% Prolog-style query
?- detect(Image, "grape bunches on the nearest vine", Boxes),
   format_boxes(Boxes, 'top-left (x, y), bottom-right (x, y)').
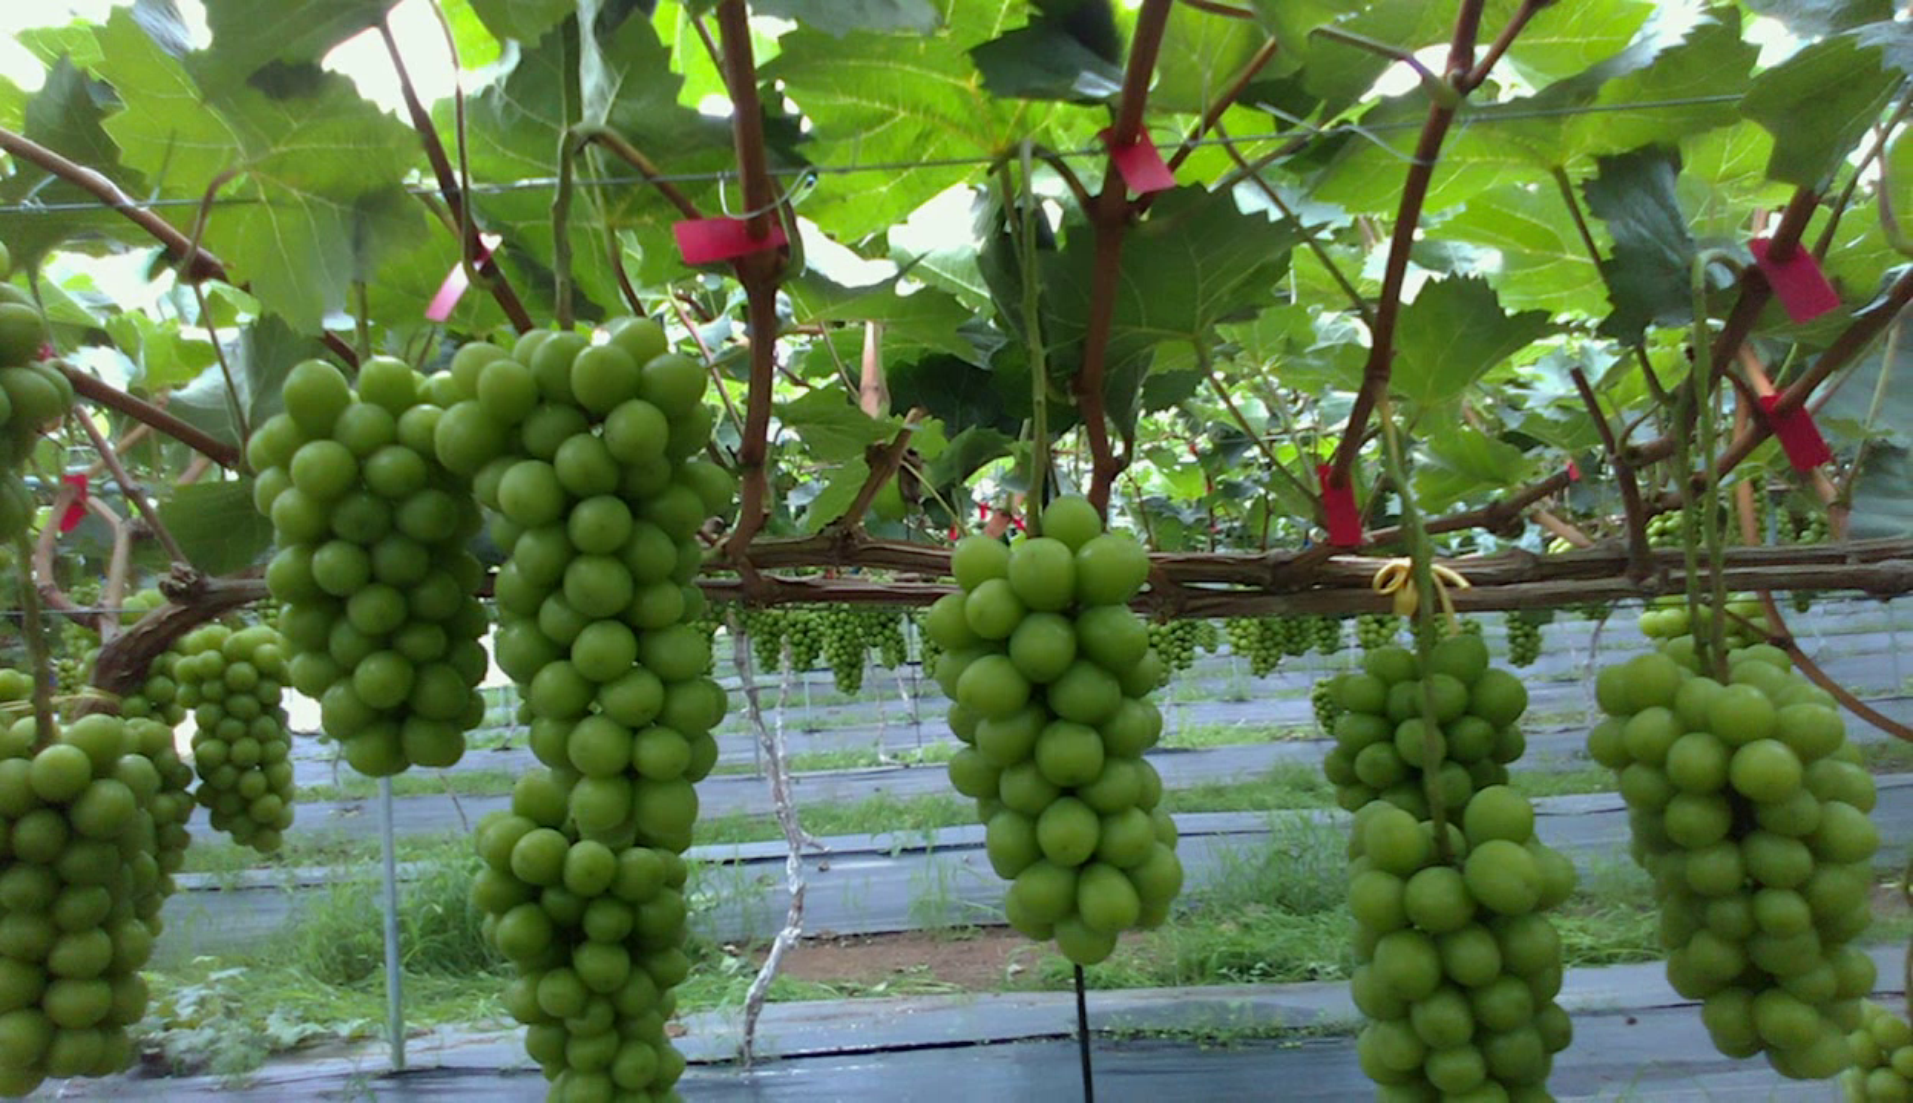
top-left (2, 714), bottom-right (162, 1095)
top-left (926, 496), bottom-right (1183, 967)
top-left (475, 766), bottom-right (690, 1101)
top-left (247, 351), bottom-right (492, 777)
top-left (1343, 781), bottom-right (1576, 1101)
top-left (437, 313), bottom-right (731, 847)
top-left (1323, 637), bottom-right (1527, 821)
top-left (1591, 646), bottom-right (1881, 1074)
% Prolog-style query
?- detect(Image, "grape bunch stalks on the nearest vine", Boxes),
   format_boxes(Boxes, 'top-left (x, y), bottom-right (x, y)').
top-left (1694, 247), bottom-right (1737, 682)
top-left (550, 124), bottom-right (702, 328)
top-left (1360, 386), bottom-right (1455, 859)
top-left (356, 274), bottom-right (371, 362)
top-left (14, 538), bottom-right (57, 751)
top-left (995, 136), bottom-right (1088, 533)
